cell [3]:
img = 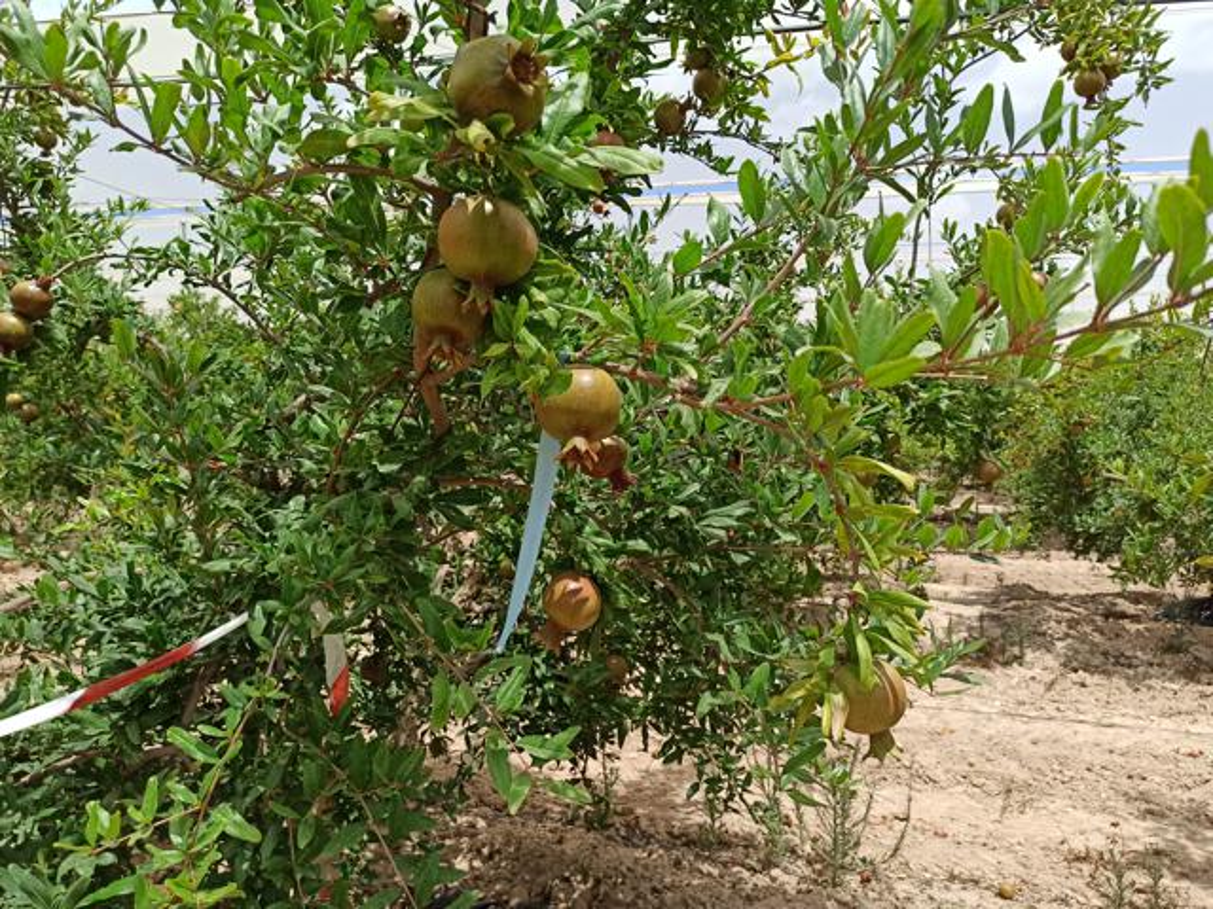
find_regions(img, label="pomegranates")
[690,68,720,100]
[4,392,25,411]
[19,401,38,426]
[974,460,1003,494]
[8,275,55,322]
[997,205,1020,229]
[682,49,713,74]
[534,365,622,475]
[1073,68,1109,102]
[834,657,908,763]
[0,311,34,354]
[1061,44,1077,61]
[584,434,641,494]
[976,286,989,309]
[654,95,696,134]
[436,195,538,314]
[370,4,411,42]
[447,32,548,138]
[534,570,603,657]
[411,267,487,369]
[1101,64,1122,80]
[605,653,629,684]
[593,131,627,146]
